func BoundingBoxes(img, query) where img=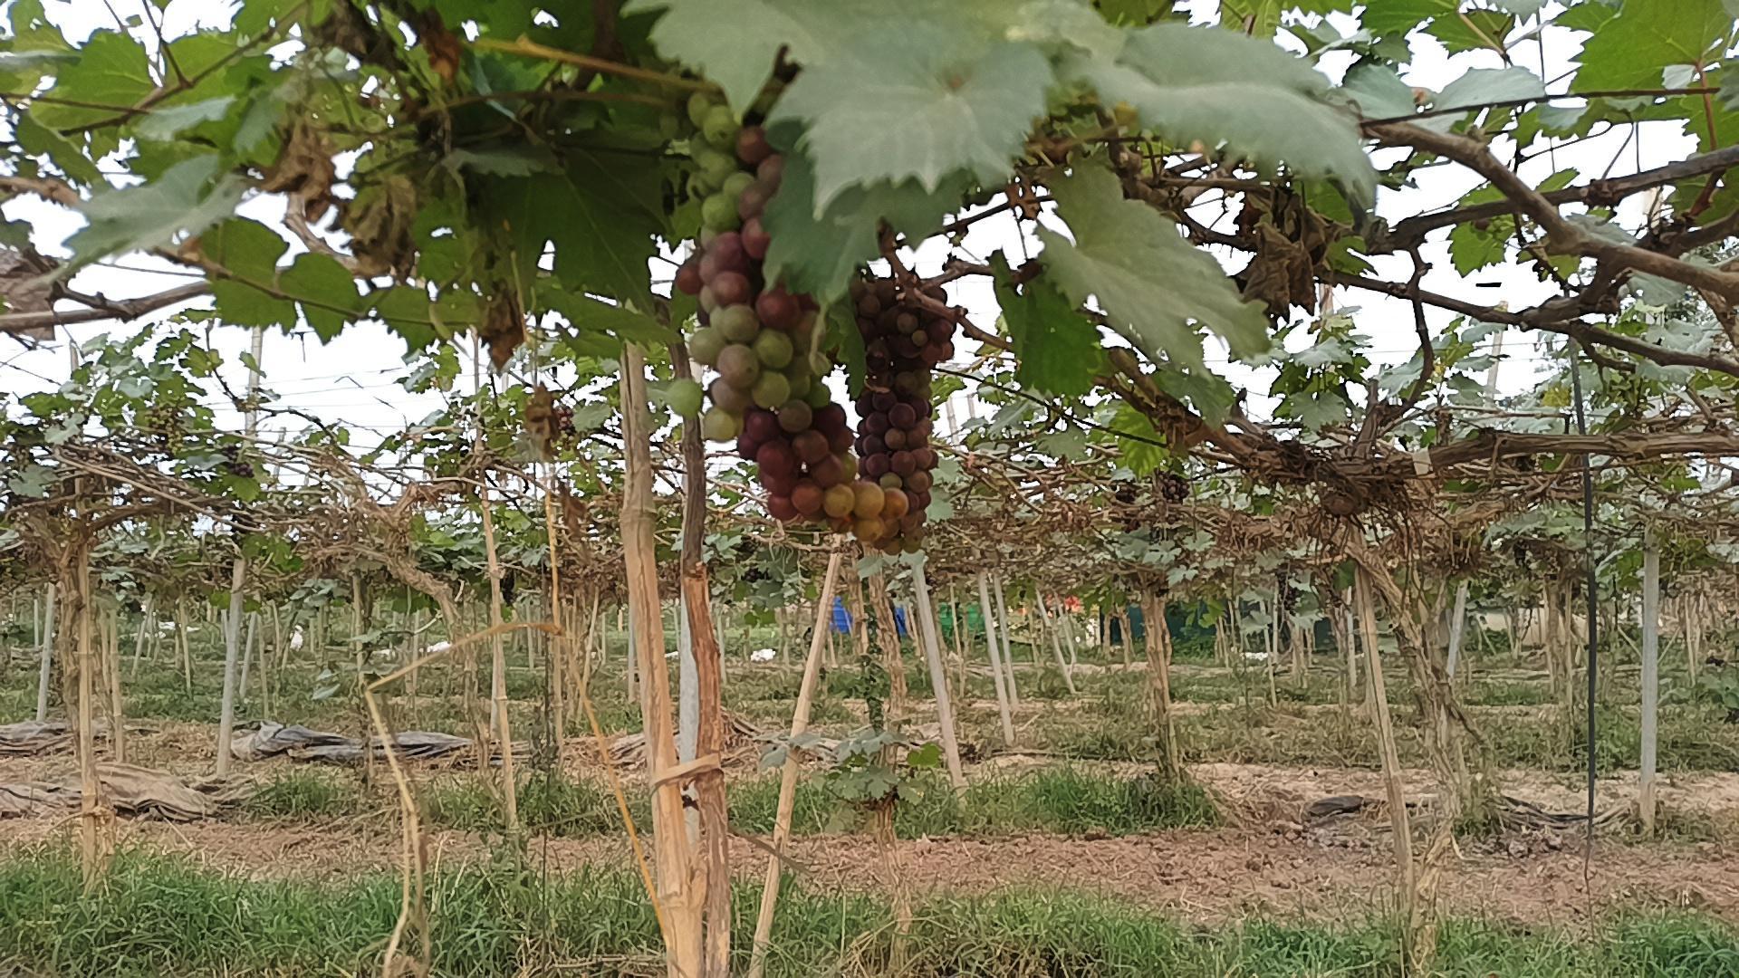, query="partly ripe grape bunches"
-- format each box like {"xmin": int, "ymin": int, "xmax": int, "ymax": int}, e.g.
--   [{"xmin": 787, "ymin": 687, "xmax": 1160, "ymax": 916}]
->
[
  {"xmin": 852, "ymin": 271, "xmax": 956, "ymax": 556},
  {"xmin": 679, "ymin": 96, "xmax": 908, "ymax": 542}
]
